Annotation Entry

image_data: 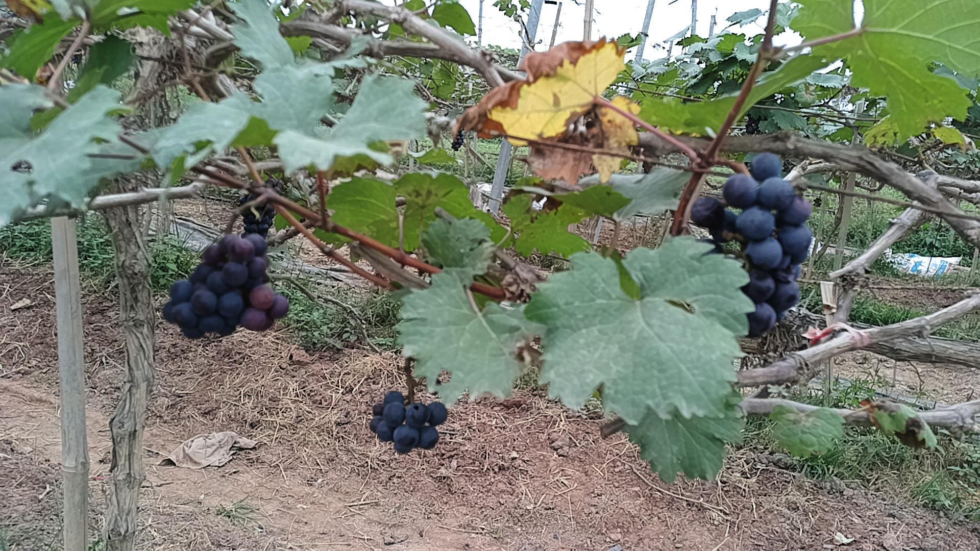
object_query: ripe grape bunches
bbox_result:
[451,129,464,151]
[239,179,284,237]
[692,154,814,338]
[745,113,768,135]
[163,233,289,338]
[370,391,447,454]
